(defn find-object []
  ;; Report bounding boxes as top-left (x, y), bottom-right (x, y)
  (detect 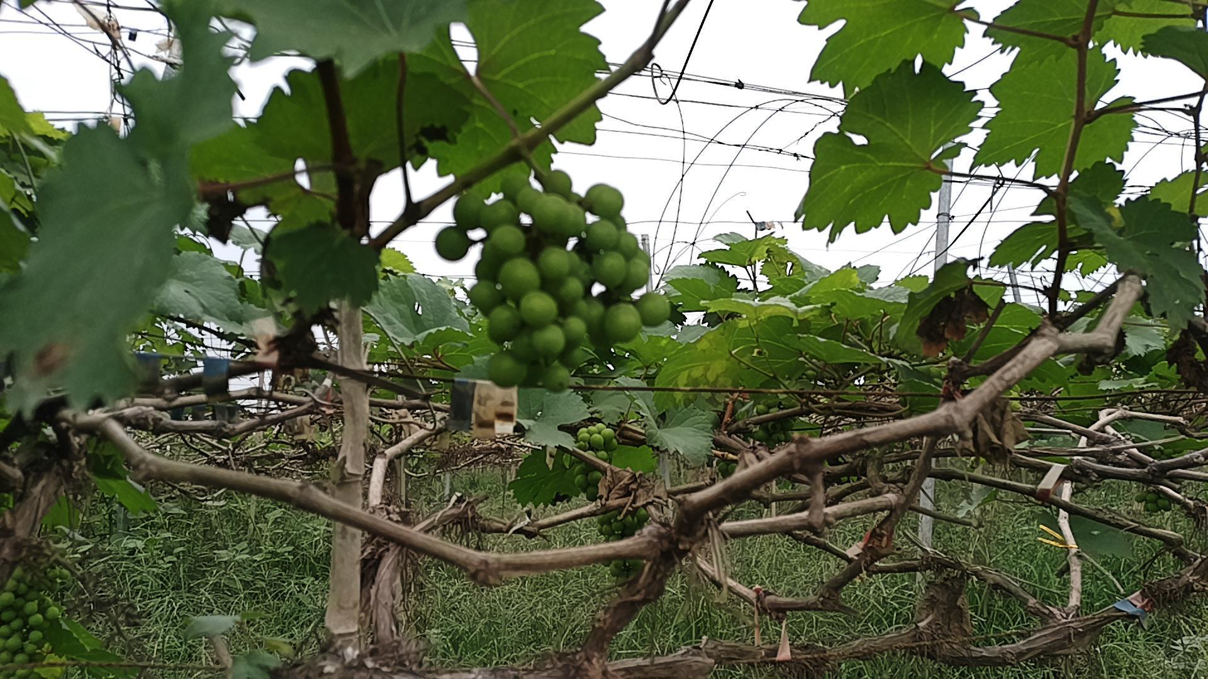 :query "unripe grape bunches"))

top-left (752, 394), bottom-right (800, 450)
top-left (1134, 447), bottom-right (1186, 512)
top-left (716, 460), bottom-right (737, 478)
top-left (435, 169), bottom-right (670, 394)
top-left (0, 565), bottom-right (70, 678)
top-left (597, 507), bottom-right (649, 587)
top-left (574, 423), bottom-right (617, 502)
